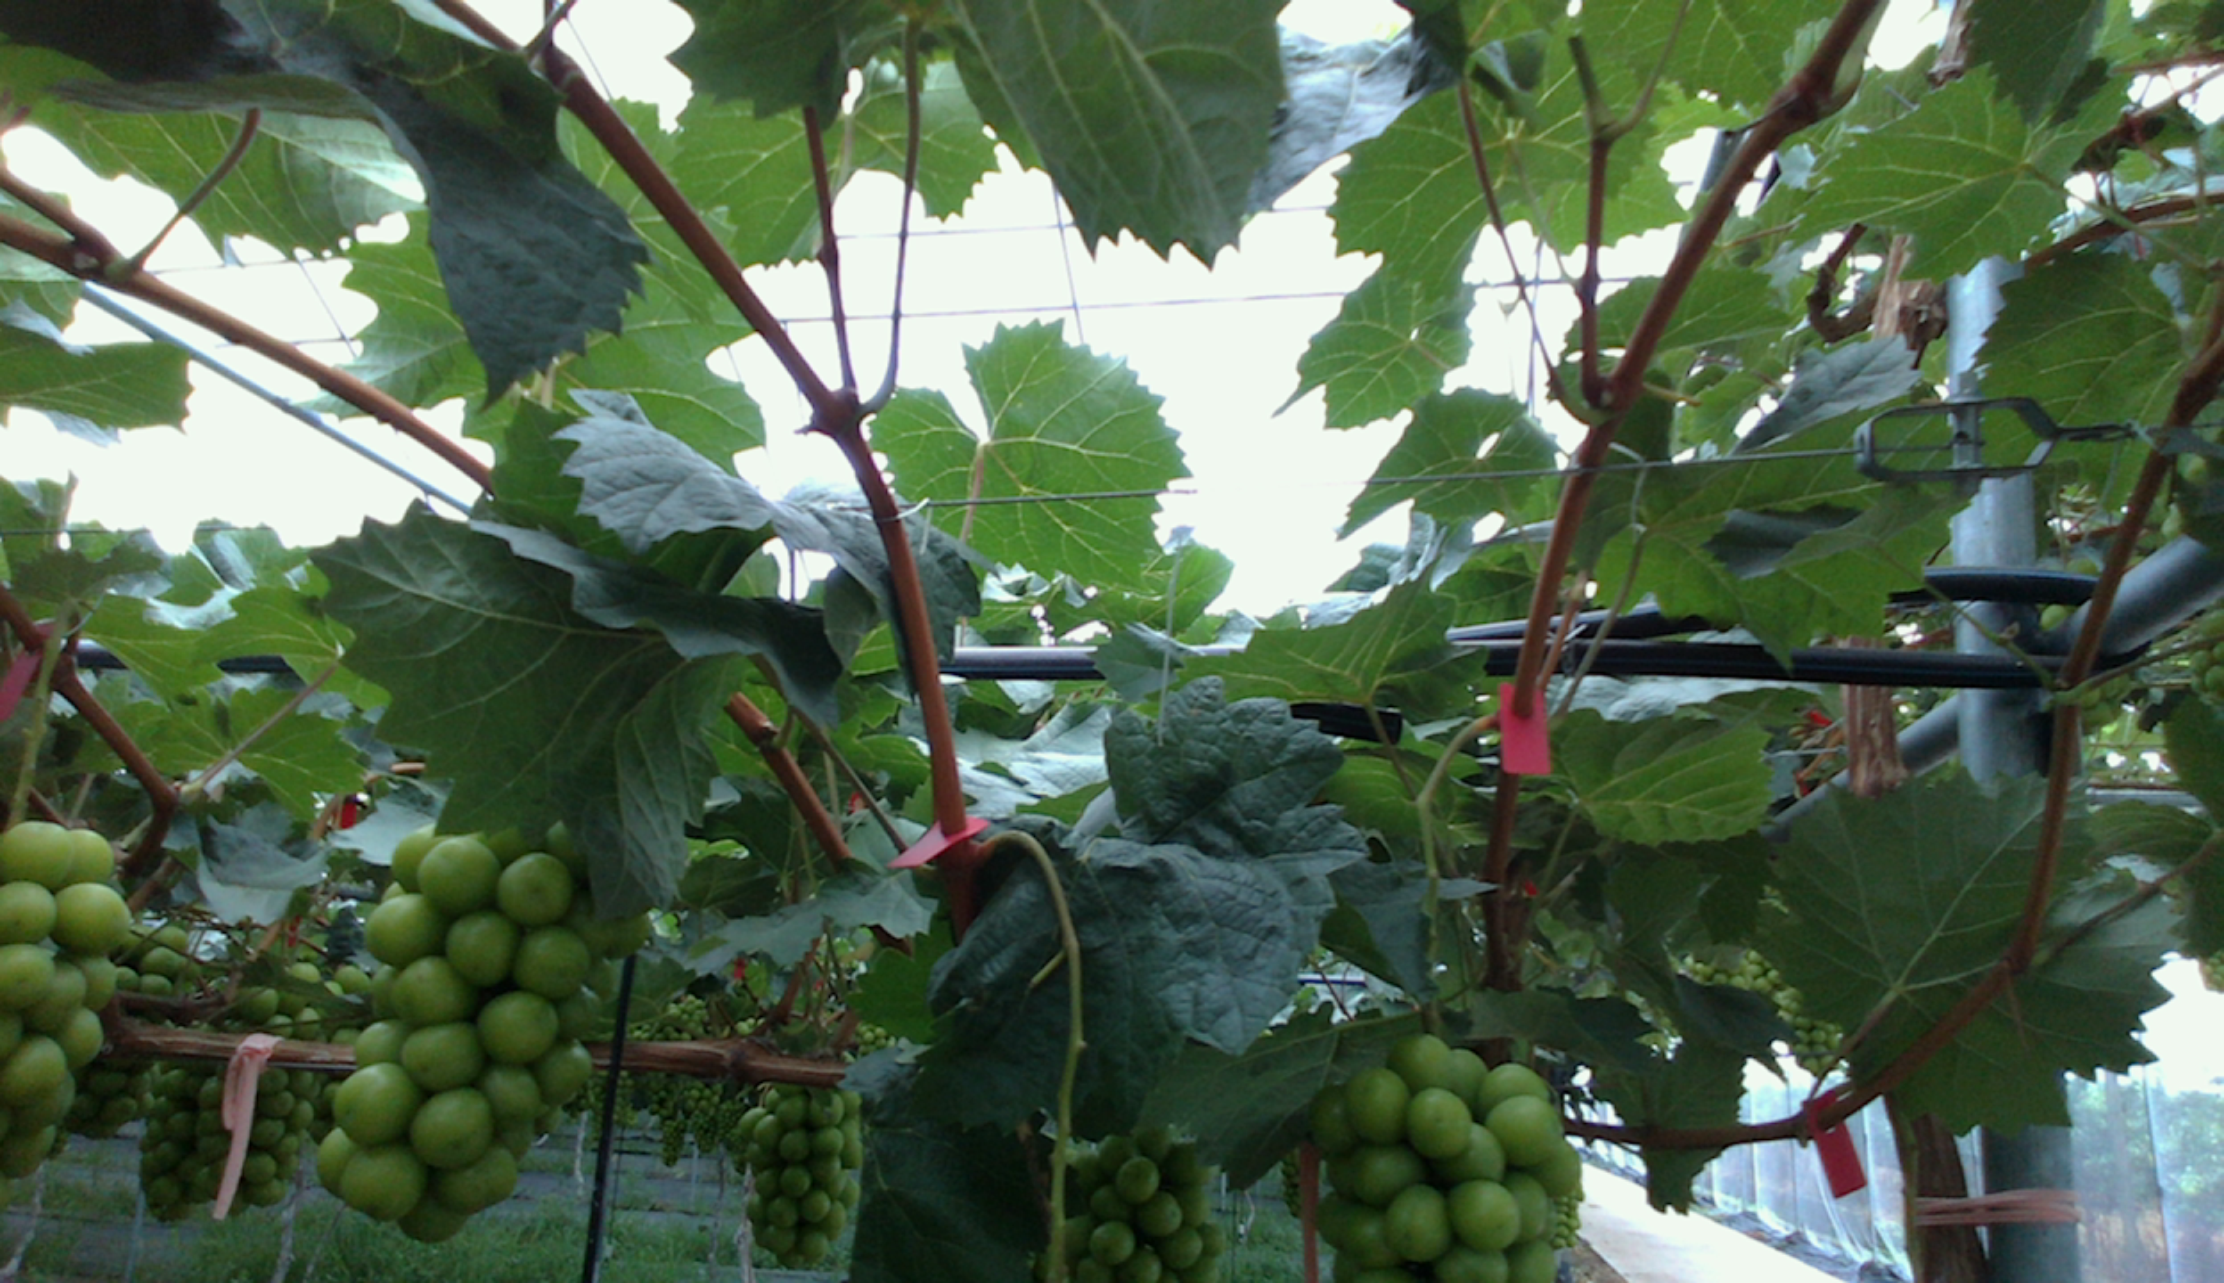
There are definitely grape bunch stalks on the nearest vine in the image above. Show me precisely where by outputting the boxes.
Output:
[4,599,86,829]
[1415,711,1499,1041]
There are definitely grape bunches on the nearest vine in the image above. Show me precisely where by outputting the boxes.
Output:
[315,821,658,1244]
[2,821,134,1180]
[1304,1034,1582,1281]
